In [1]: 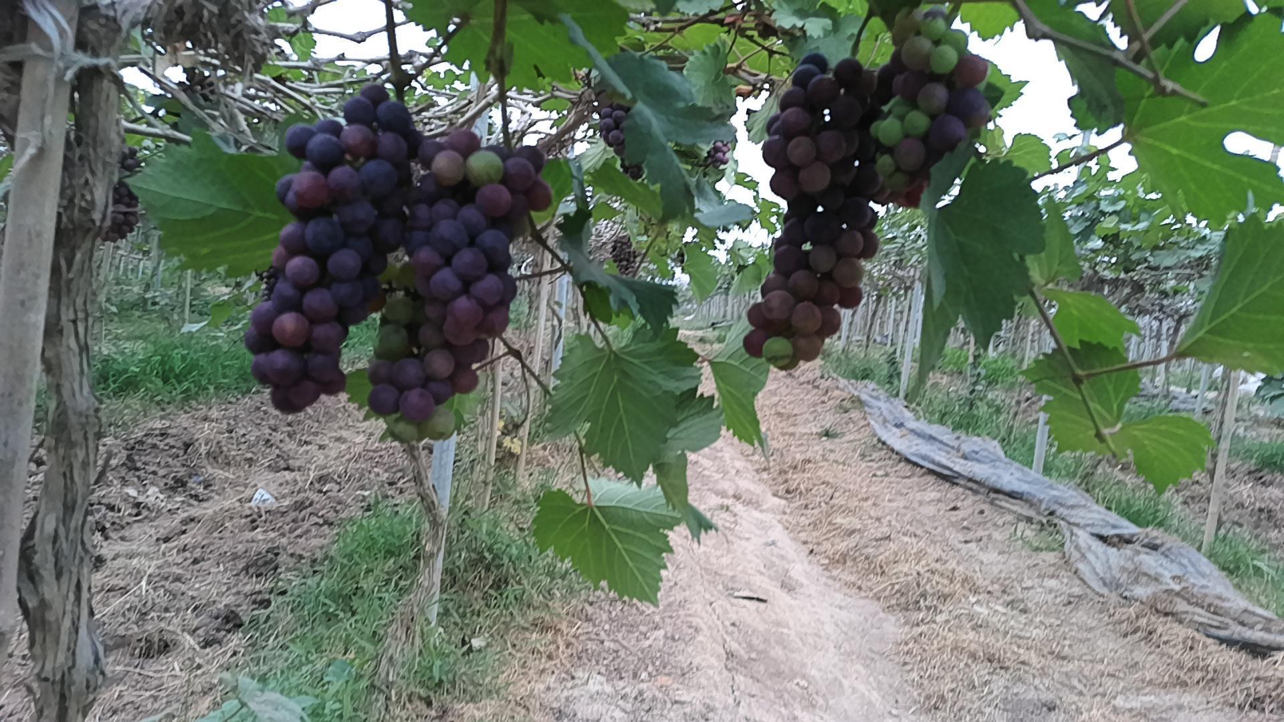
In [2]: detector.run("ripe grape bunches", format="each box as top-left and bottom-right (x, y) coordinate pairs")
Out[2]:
(706, 141), (730, 166)
(610, 234), (644, 276)
(244, 84), (420, 412)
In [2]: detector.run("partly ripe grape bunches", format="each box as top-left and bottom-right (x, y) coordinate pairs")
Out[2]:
(744, 53), (881, 370)
(368, 129), (552, 443)
(870, 5), (990, 207)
